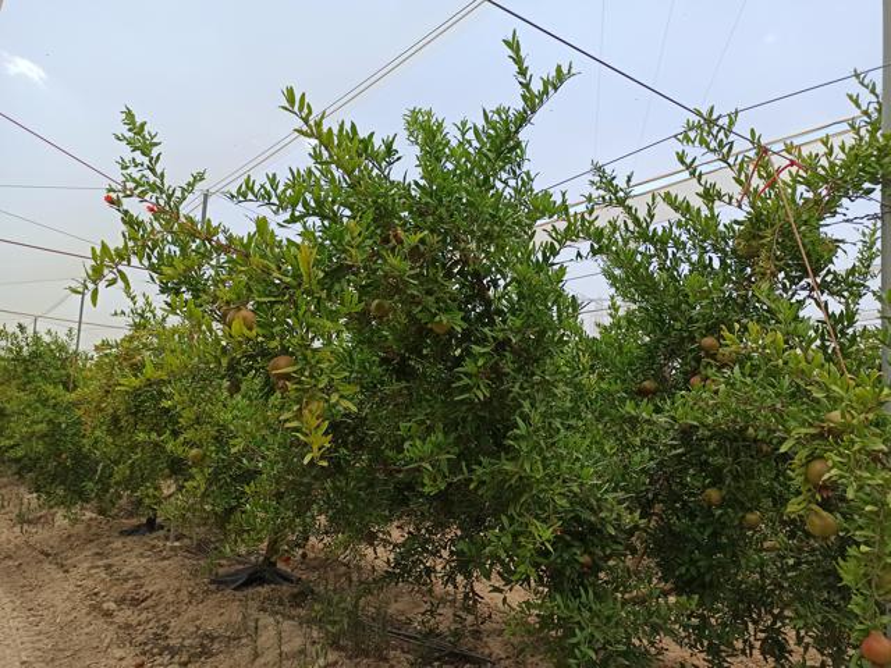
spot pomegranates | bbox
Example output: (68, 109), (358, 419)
(425, 321), (447, 335)
(699, 335), (718, 352)
(368, 298), (391, 321)
(807, 509), (838, 543)
(859, 629), (891, 668)
(582, 554), (593, 573)
(640, 380), (657, 399)
(742, 511), (762, 527)
(223, 308), (256, 331)
(267, 355), (295, 390)
(689, 376), (700, 388)
(806, 456), (834, 498)
(824, 409), (853, 423)
(702, 488), (723, 507)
